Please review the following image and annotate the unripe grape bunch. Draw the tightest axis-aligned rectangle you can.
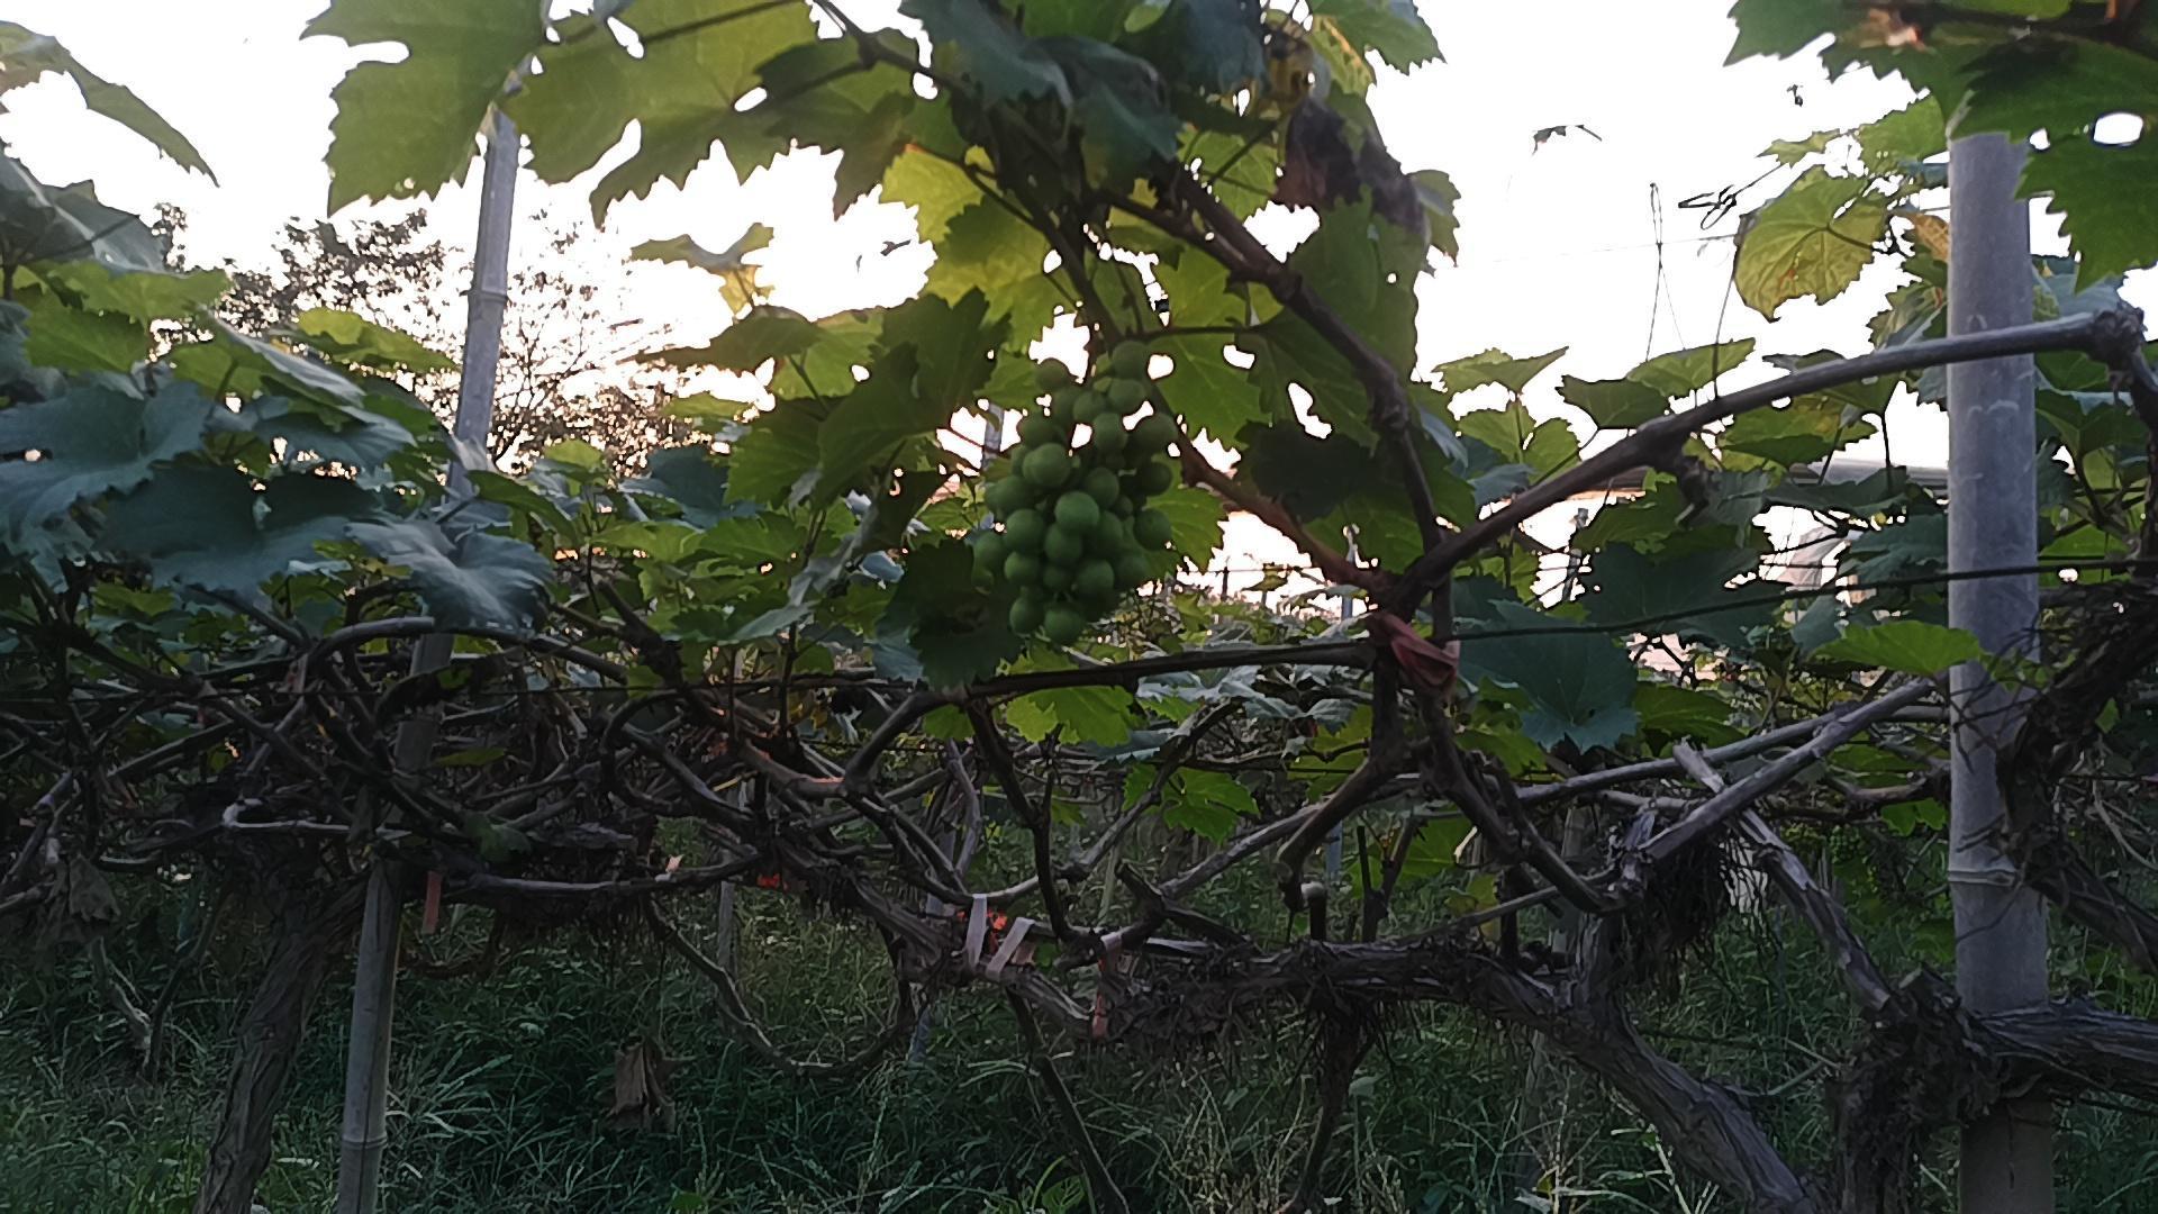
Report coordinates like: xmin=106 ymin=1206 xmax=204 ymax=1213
xmin=974 ymin=343 xmax=1179 ymax=643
